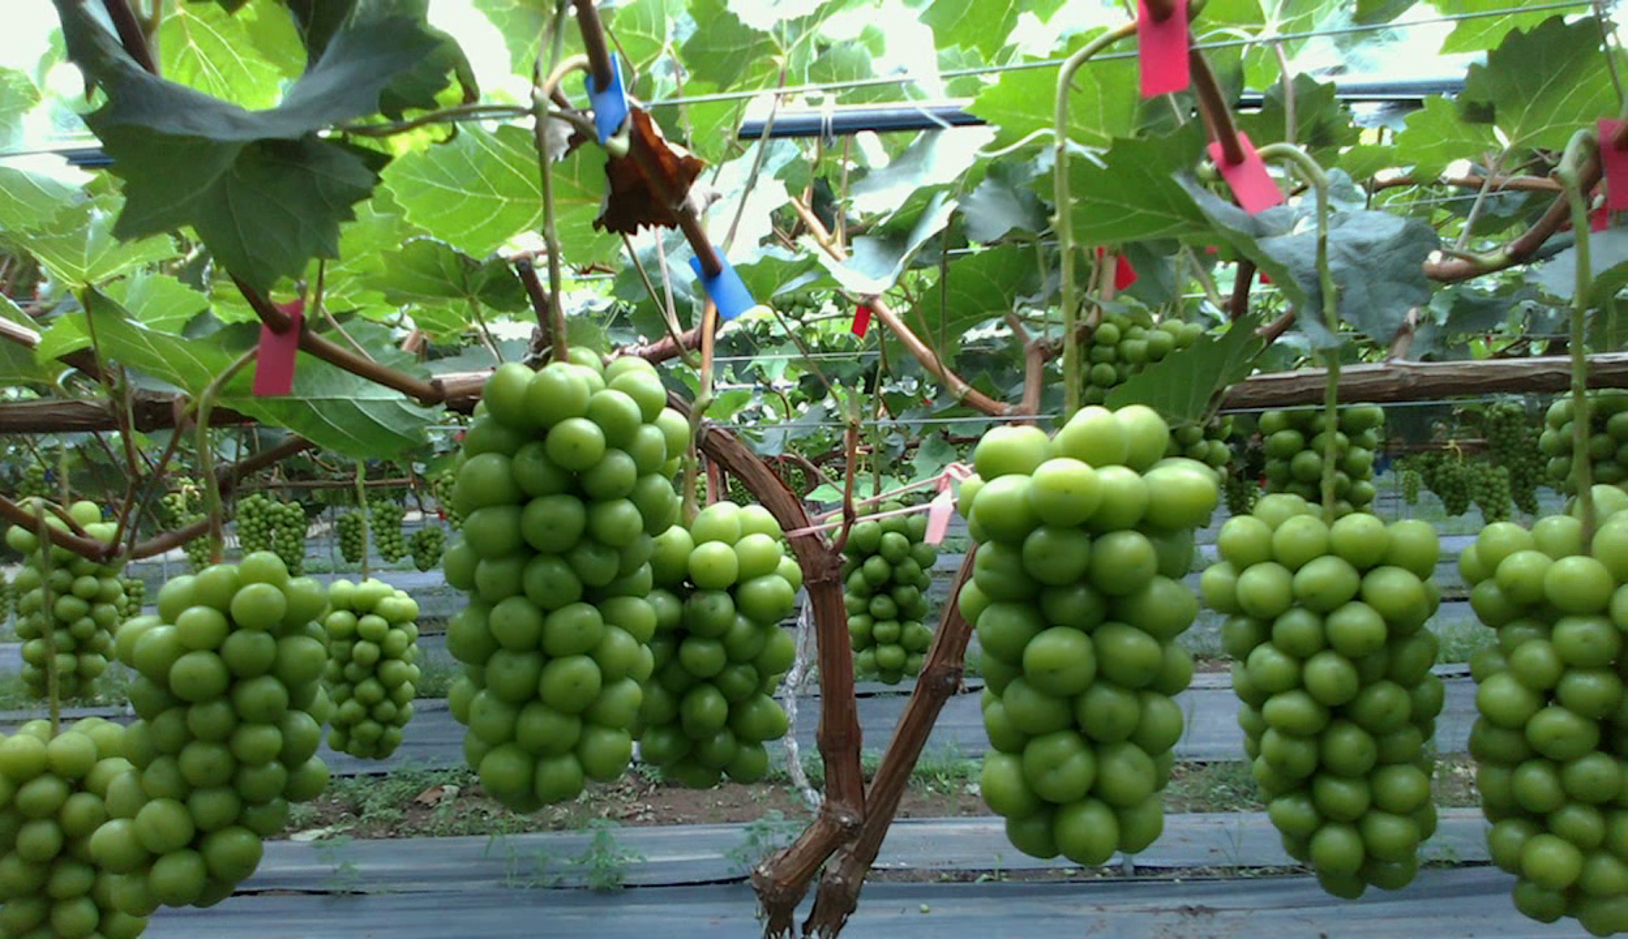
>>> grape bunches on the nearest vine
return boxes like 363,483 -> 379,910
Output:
1461,484 -> 1627,936
1200,493 -> 1445,900
444,346 -> 689,815
957,404 -> 1217,863
0,716 -> 151,936
624,496 -> 802,790
90,550 -> 331,917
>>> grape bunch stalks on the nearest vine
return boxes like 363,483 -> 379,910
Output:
680,296 -> 716,529
1560,129 -> 1598,558
1054,17 -> 1136,424
534,53 -> 587,364
33,497 -> 87,739
194,346 -> 257,566
1256,143 -> 1342,529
